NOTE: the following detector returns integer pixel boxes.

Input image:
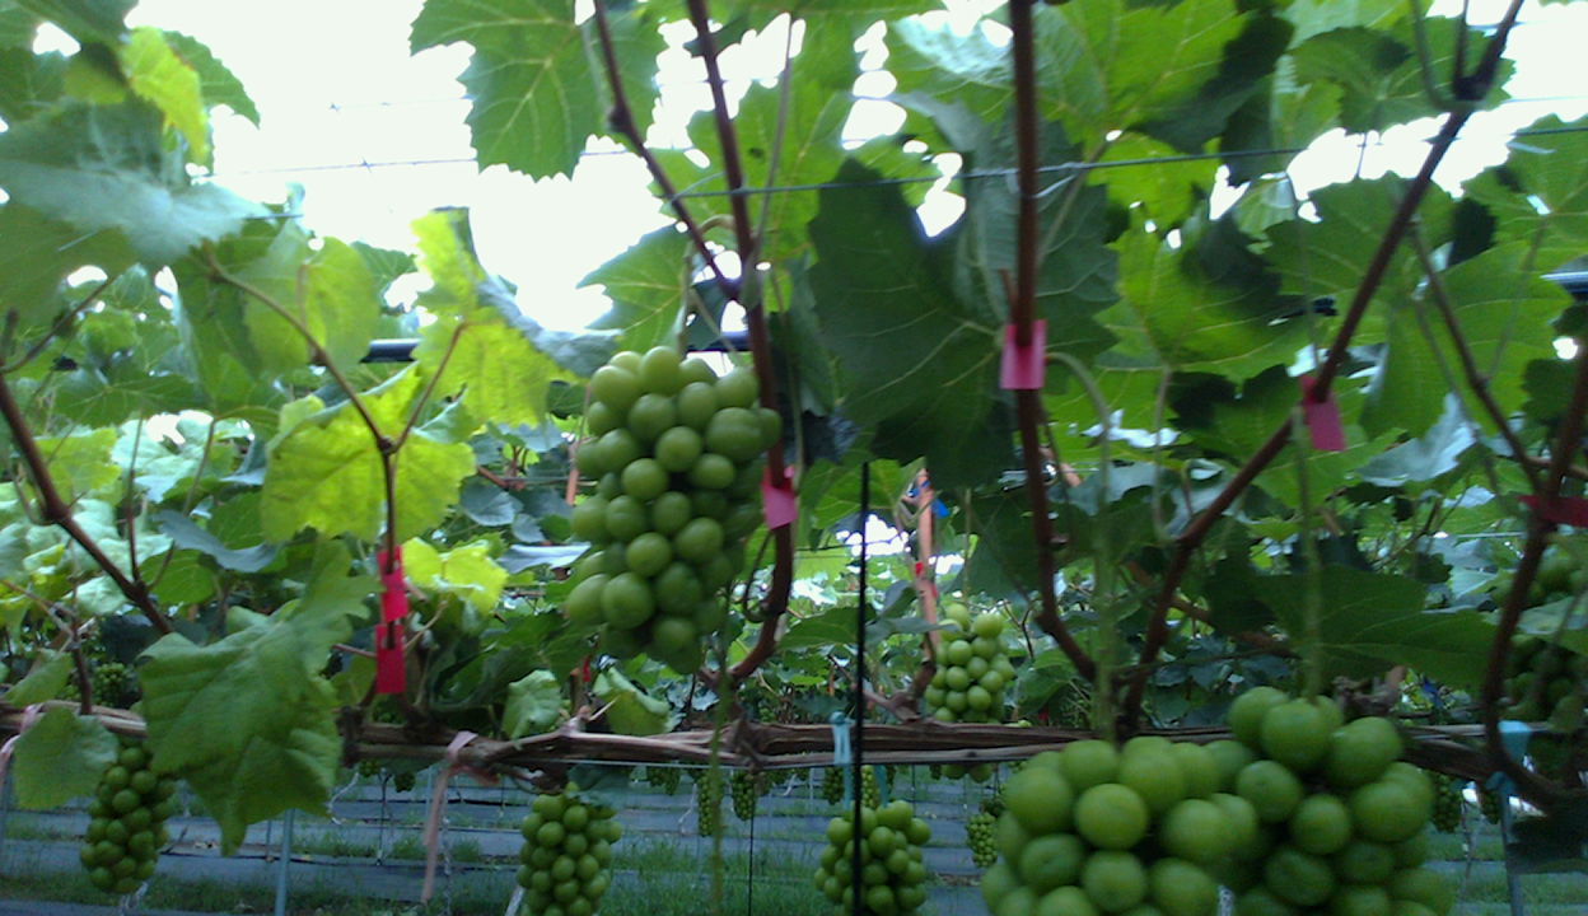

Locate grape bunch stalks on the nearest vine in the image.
[1046,351,1116,746]
[1292,406,1320,705]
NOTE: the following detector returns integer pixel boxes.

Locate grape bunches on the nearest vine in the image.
[980,734,1257,915]
[566,346,781,674]
[1196,686,1452,915]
